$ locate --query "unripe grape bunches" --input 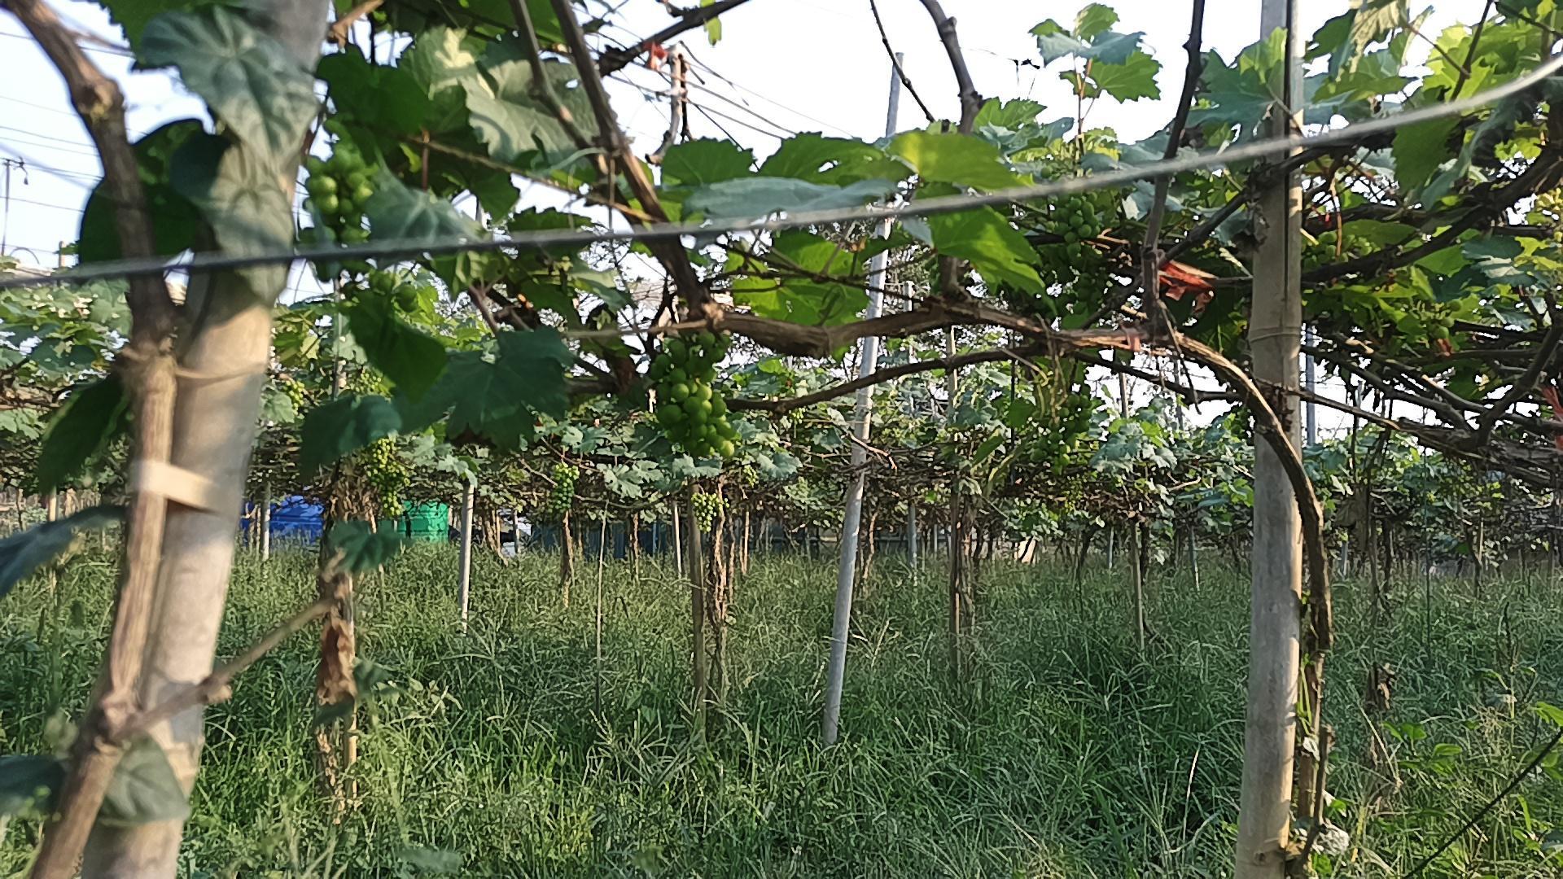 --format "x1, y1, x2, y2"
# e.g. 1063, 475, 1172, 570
277, 369, 309, 420
545, 457, 579, 513
648, 333, 738, 457
691, 491, 725, 534
299, 139, 378, 282
358, 439, 409, 515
